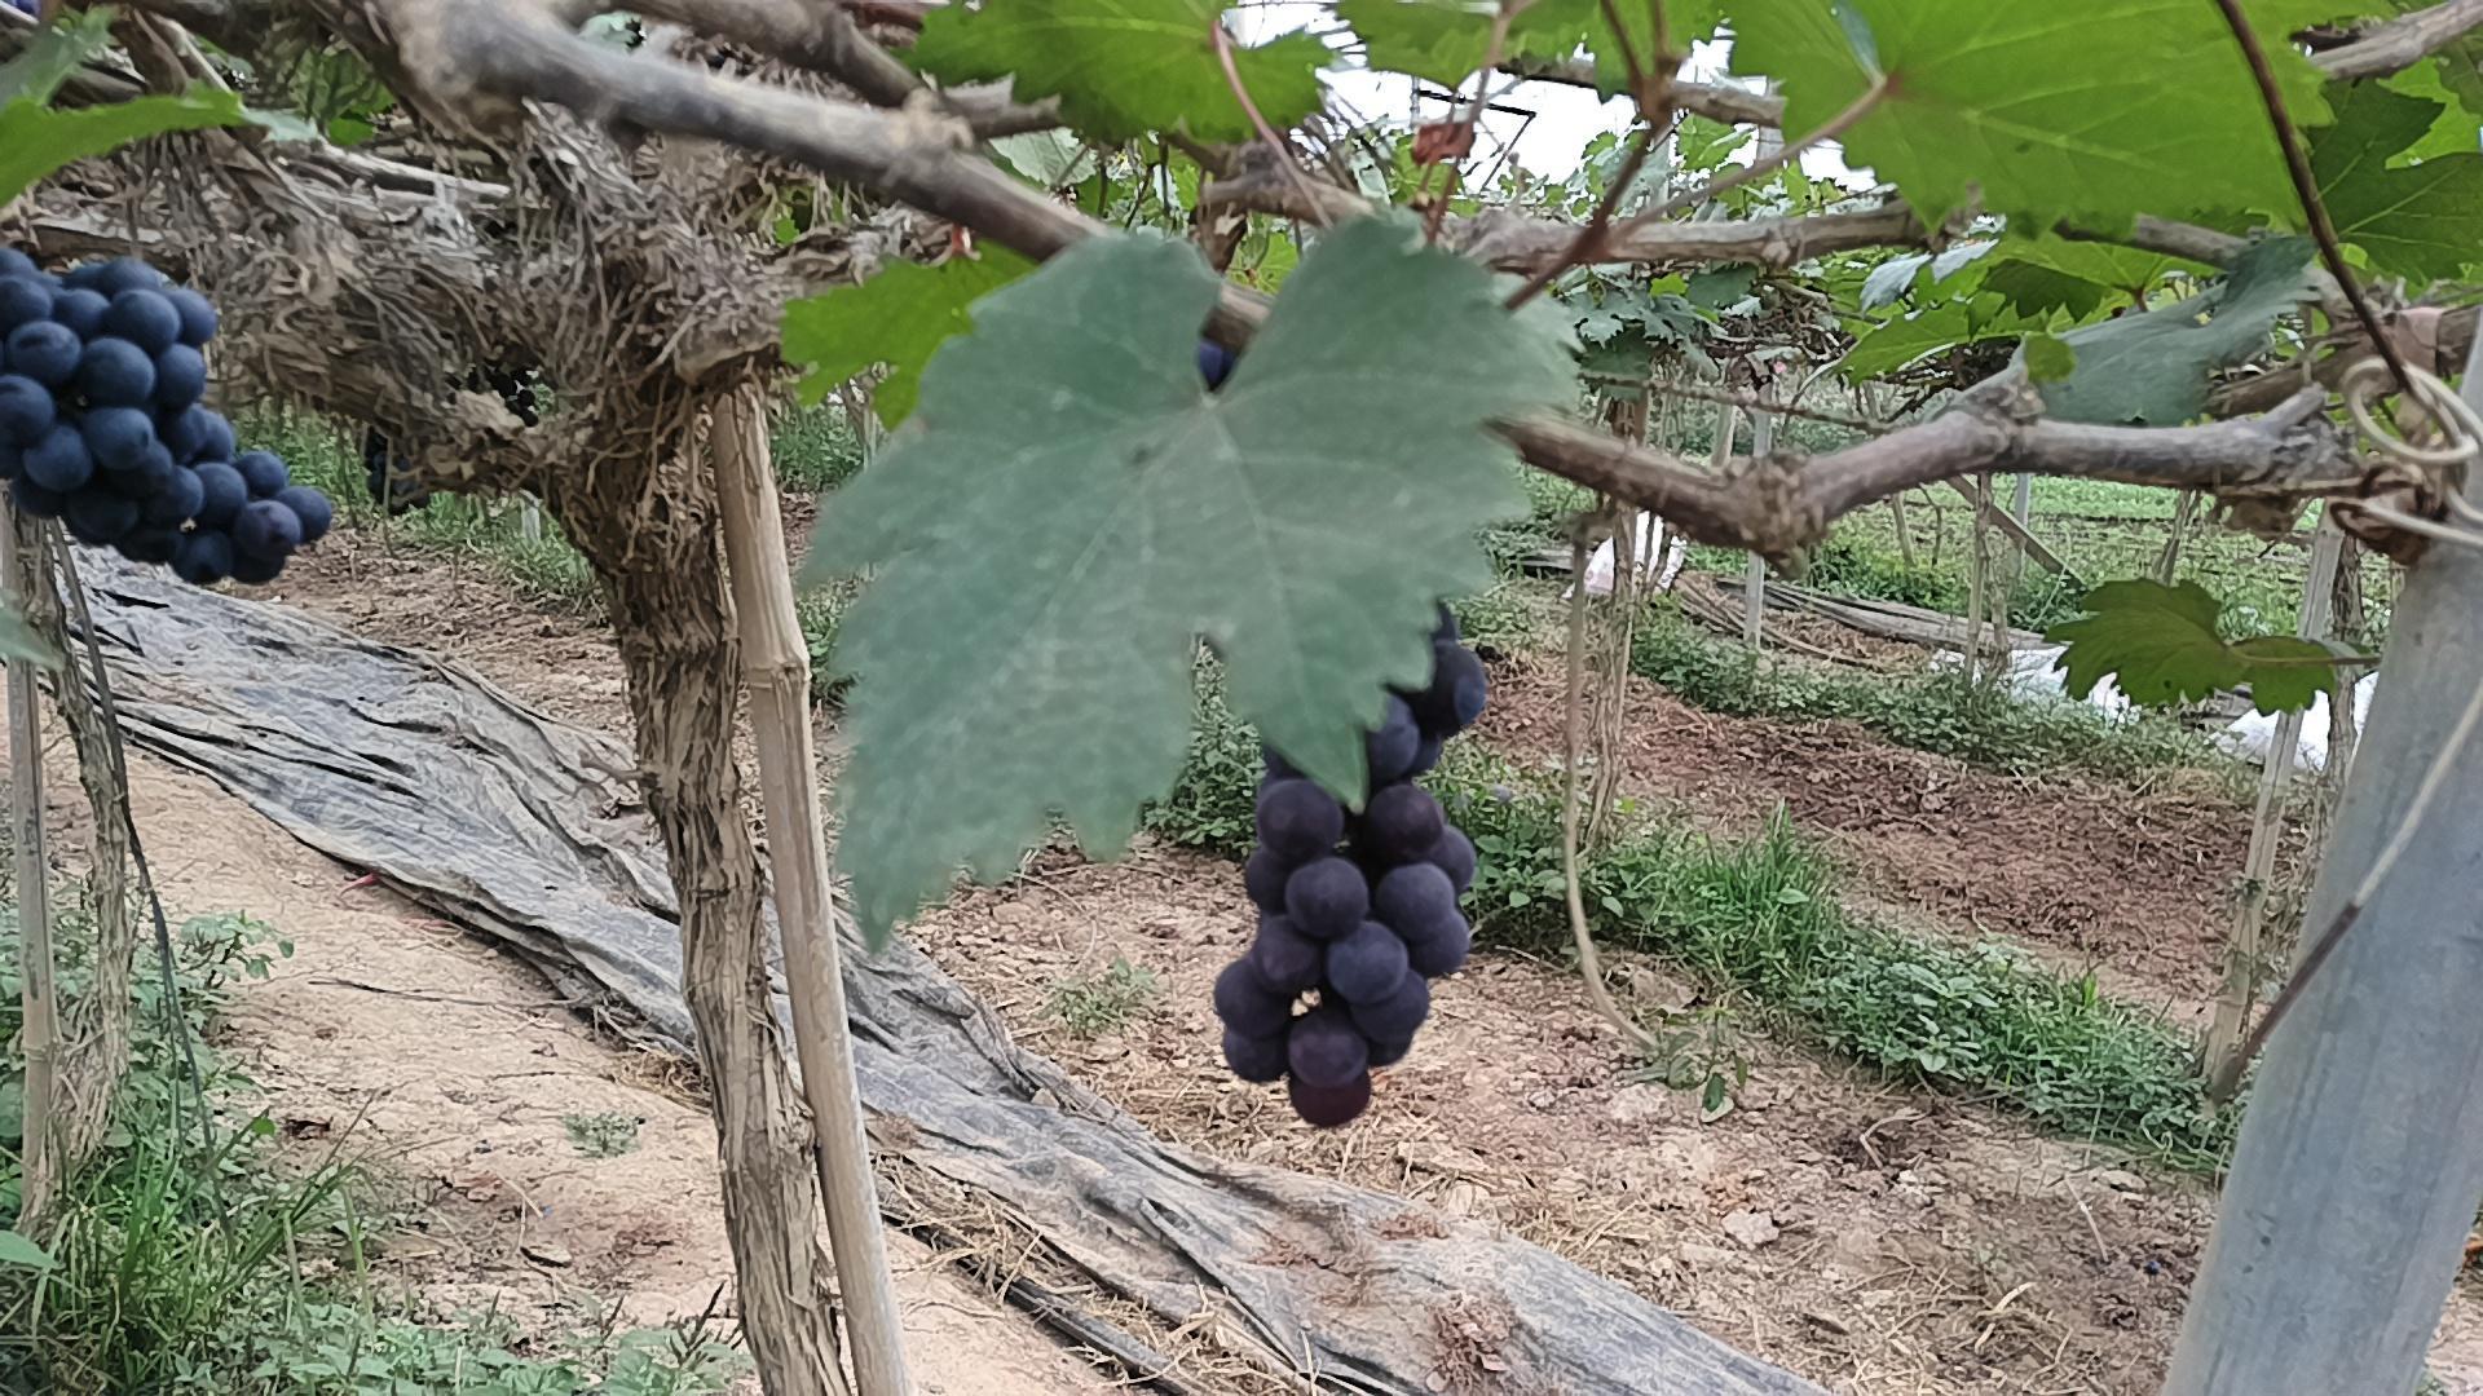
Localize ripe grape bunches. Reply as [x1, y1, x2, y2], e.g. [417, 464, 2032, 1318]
[0, 248, 332, 583]
[1216, 602, 1487, 1126]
